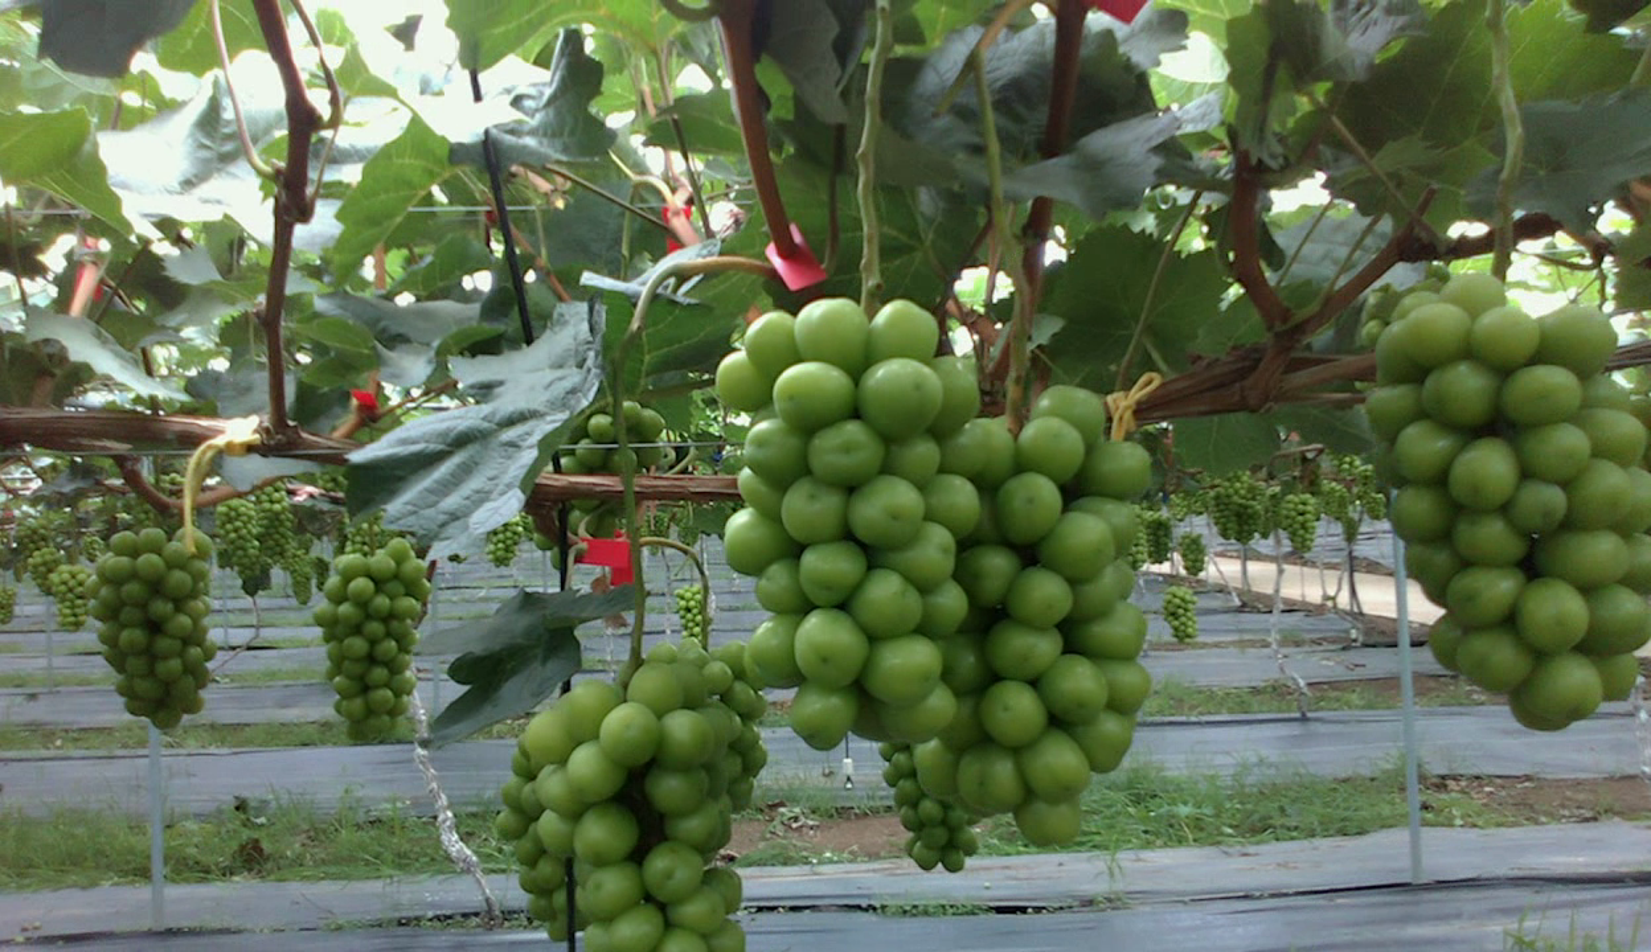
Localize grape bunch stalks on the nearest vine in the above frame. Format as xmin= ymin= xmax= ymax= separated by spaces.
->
xmin=856 ymin=0 xmax=892 ymax=319
xmin=1486 ymin=1 xmax=1521 ymax=283
xmin=979 ymin=58 xmax=1027 ymax=438
xmin=613 ymin=257 xmax=782 ymax=690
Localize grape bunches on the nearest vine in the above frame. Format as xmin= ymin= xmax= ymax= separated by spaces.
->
xmin=525 ymin=662 xmax=746 ymax=951
xmin=1365 ymin=272 xmax=1650 ymax=730
xmin=714 ymin=299 xmax=988 ymax=752
xmin=914 ymin=385 xmax=1154 ymax=848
